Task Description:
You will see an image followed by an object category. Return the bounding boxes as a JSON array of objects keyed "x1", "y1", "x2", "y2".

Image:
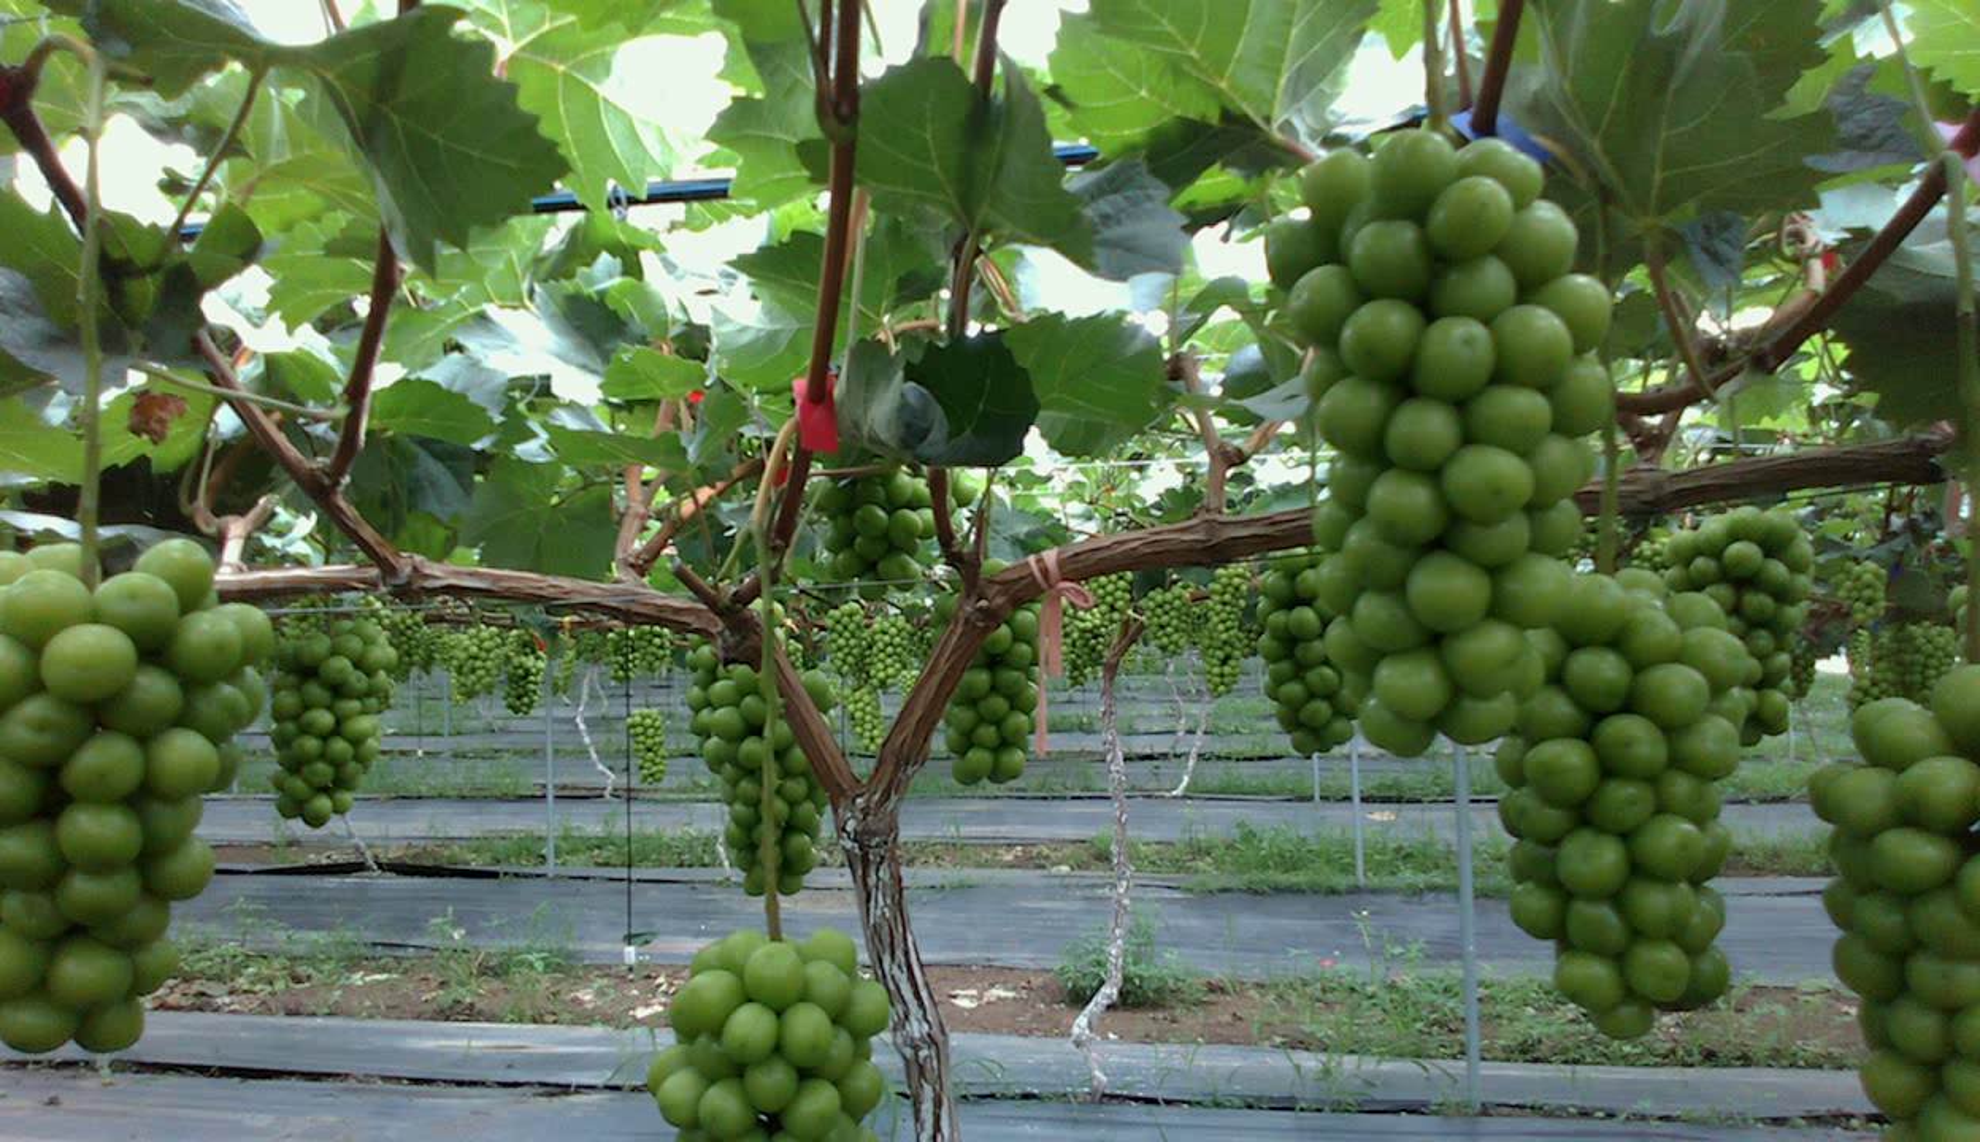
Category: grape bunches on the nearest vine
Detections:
[
  {"x1": 1264, "y1": 130, "x2": 1614, "y2": 757},
  {"x1": 1495, "y1": 568, "x2": 1750, "y2": 1040},
  {"x1": 0, "y1": 538, "x2": 274, "y2": 1055},
  {"x1": 646, "y1": 928, "x2": 888, "y2": 1140},
  {"x1": 1807, "y1": 663, "x2": 1978, "y2": 1140}
]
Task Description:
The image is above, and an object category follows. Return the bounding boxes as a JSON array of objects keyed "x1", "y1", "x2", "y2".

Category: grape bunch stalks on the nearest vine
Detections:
[
  {"x1": 750, "y1": 416, "x2": 798, "y2": 942},
  {"x1": 24, "y1": 33, "x2": 105, "y2": 596},
  {"x1": 1940, "y1": 152, "x2": 1978, "y2": 663},
  {"x1": 1423, "y1": 0, "x2": 1449, "y2": 132},
  {"x1": 1596, "y1": 328, "x2": 1617, "y2": 576}
]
